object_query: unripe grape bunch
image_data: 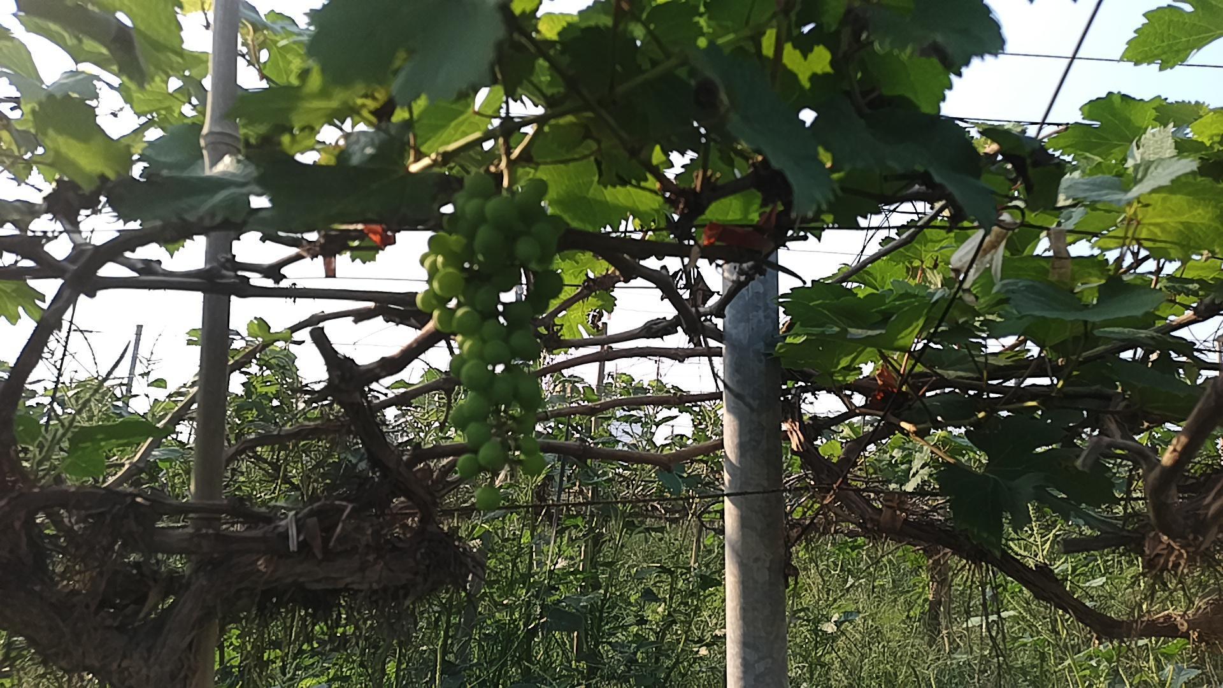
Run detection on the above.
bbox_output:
[416,174,568,512]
